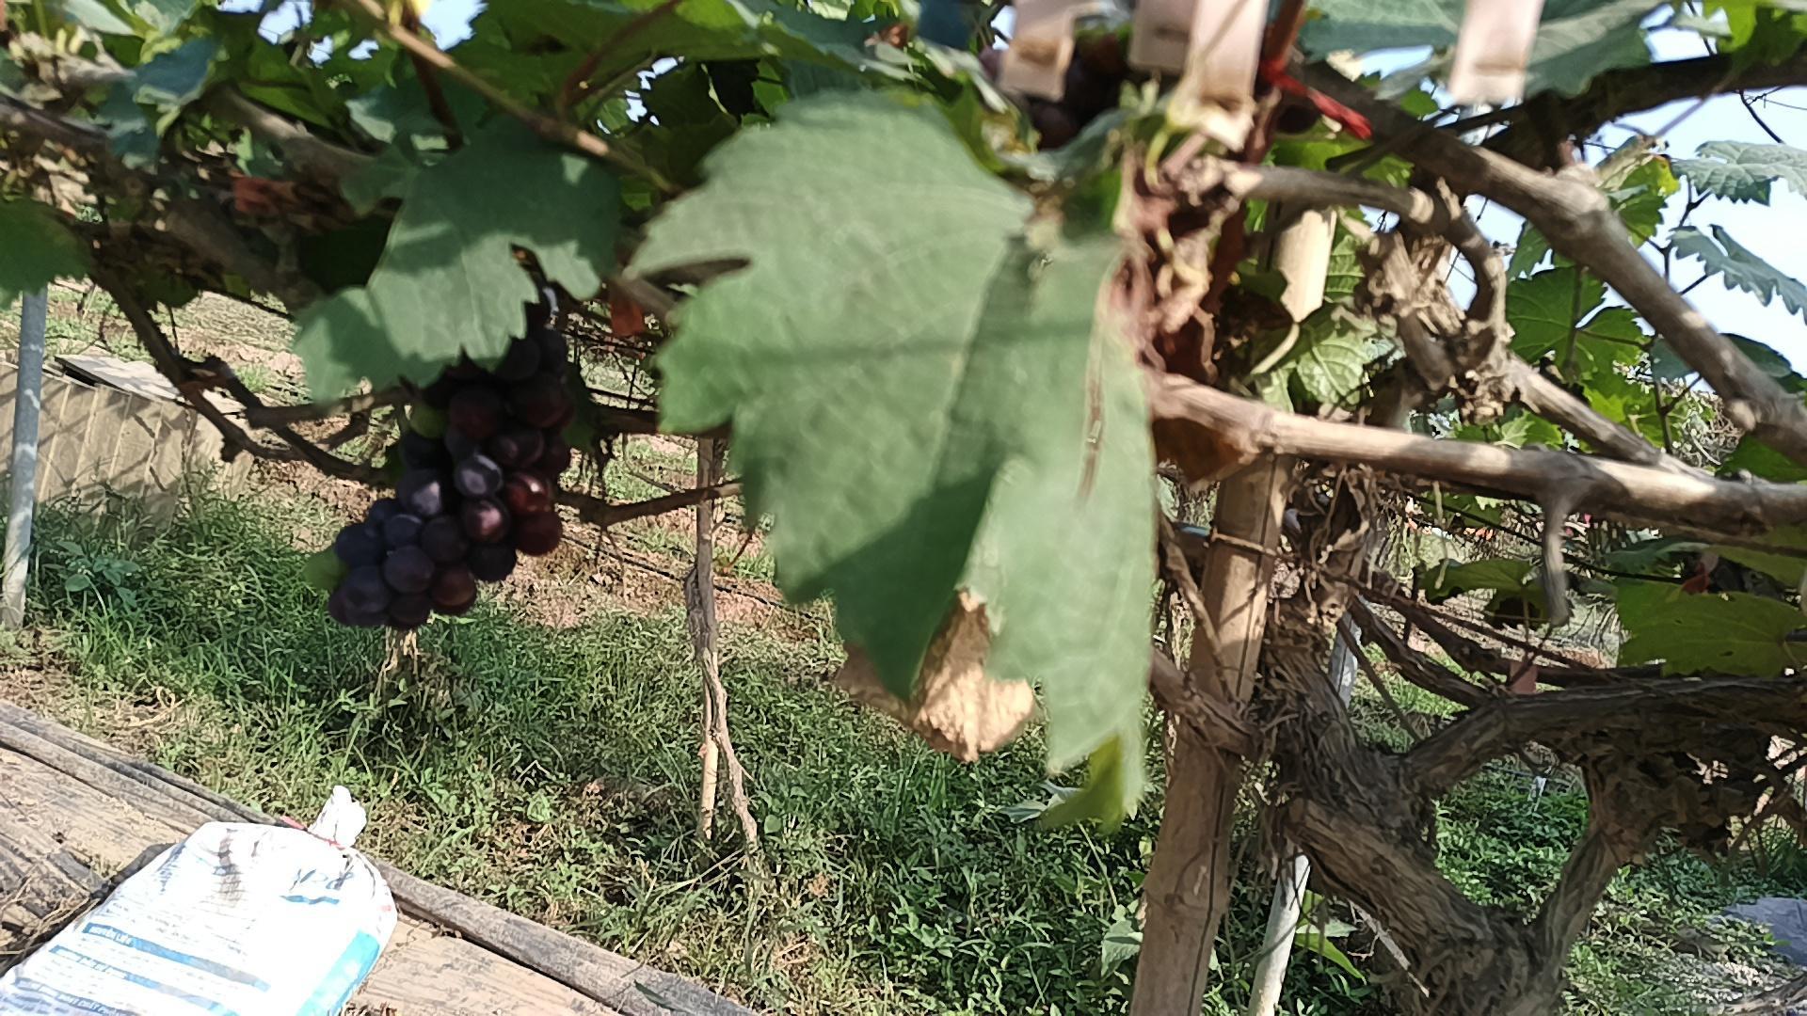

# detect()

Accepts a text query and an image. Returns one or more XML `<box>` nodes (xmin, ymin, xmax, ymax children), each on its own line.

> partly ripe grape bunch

<box><xmin>304</xmin><ymin>328</ymin><xmax>583</xmax><ymax>628</ymax></box>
